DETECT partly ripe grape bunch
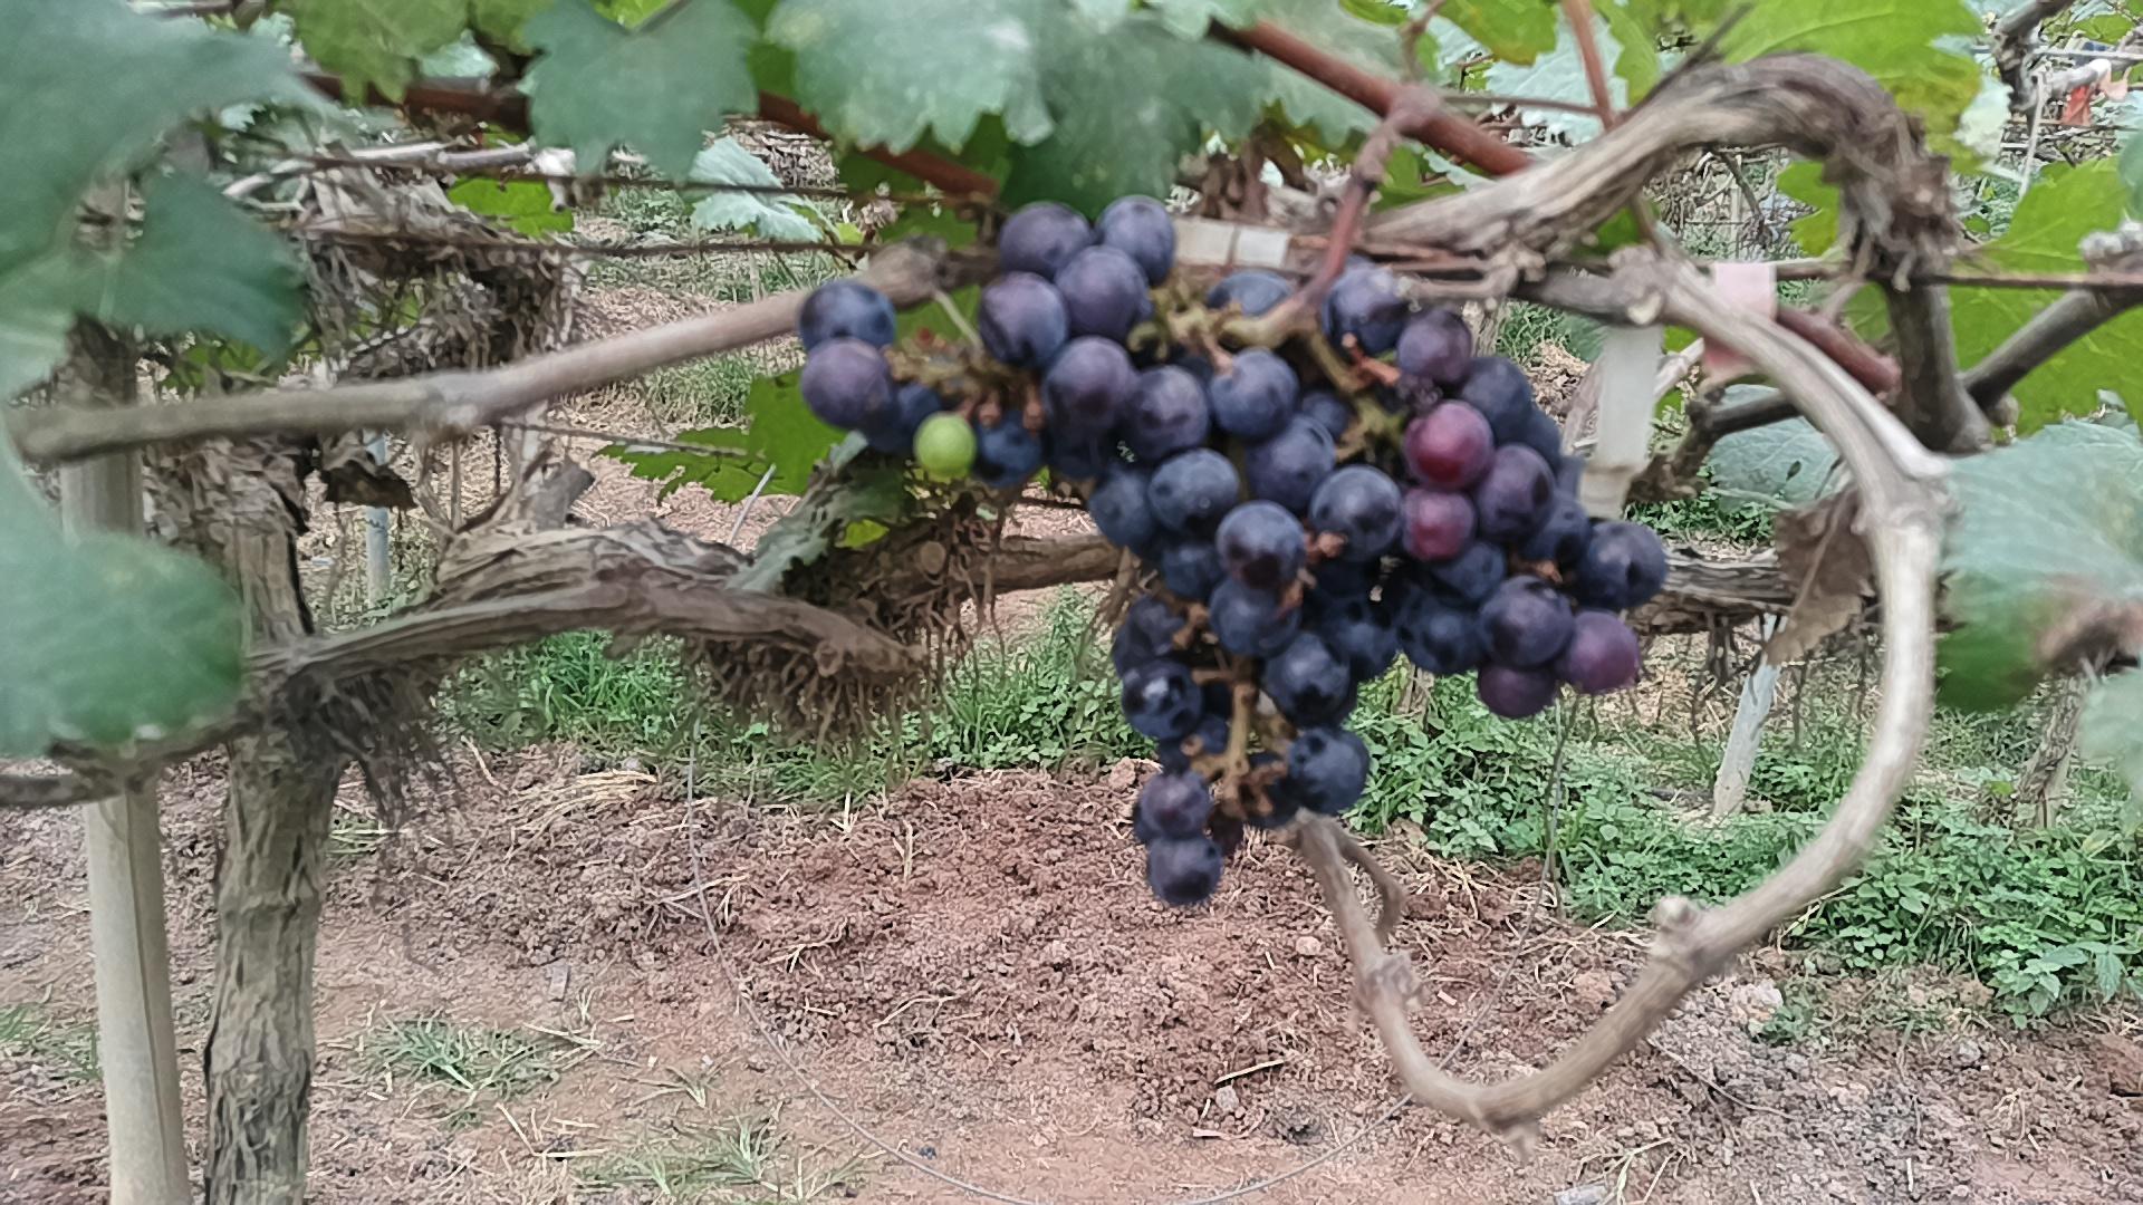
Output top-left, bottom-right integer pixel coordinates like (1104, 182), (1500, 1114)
(797, 196), (1664, 902)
